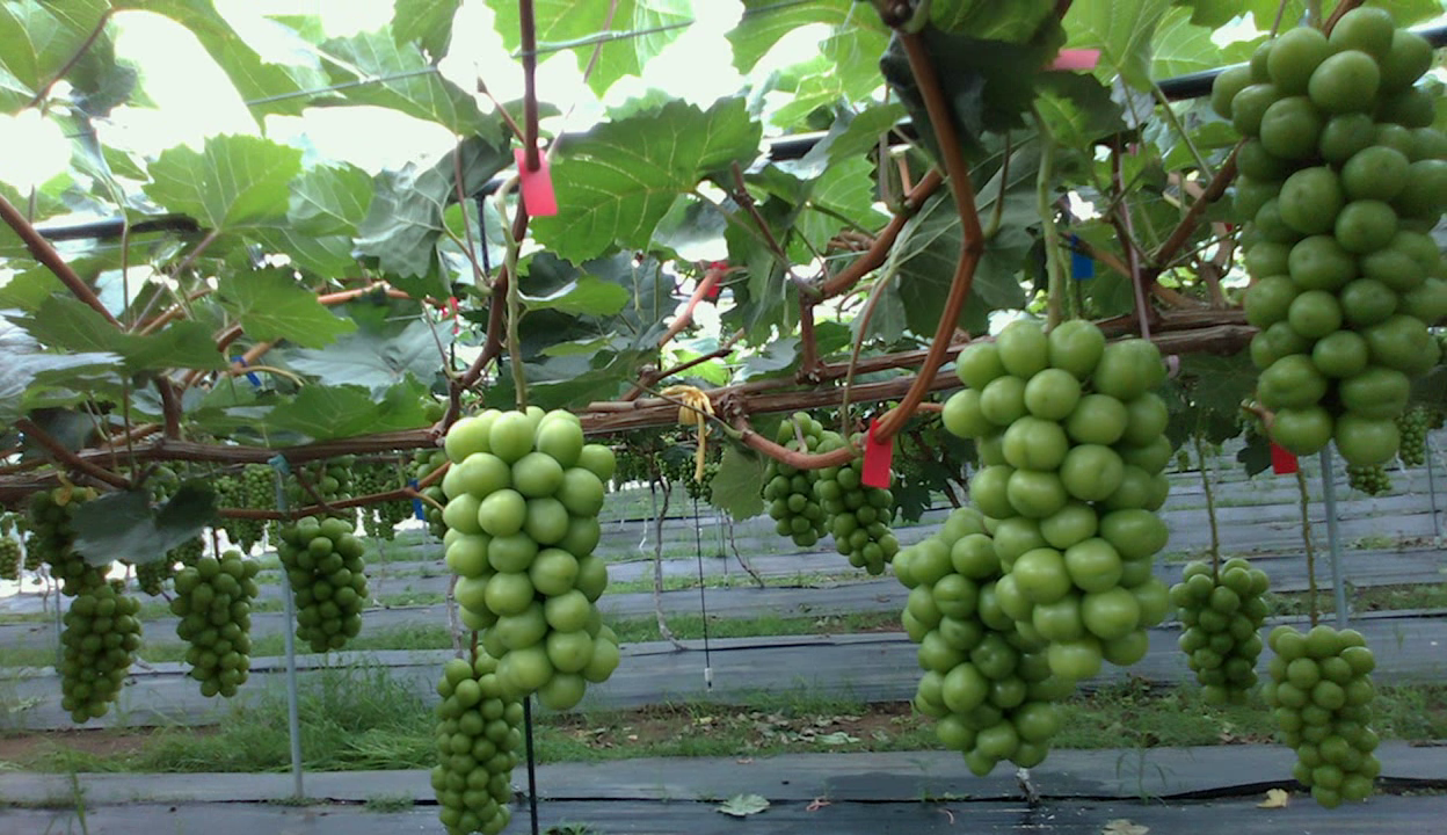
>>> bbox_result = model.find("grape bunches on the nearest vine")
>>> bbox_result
[439,407,621,711]
[1210,7,1446,467]
[943,318,1173,681]
[889,507,1068,778]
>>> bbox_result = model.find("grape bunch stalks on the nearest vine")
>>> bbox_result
[1033,112,1063,329]
[492,176,528,411]
[1307,0,1321,27]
